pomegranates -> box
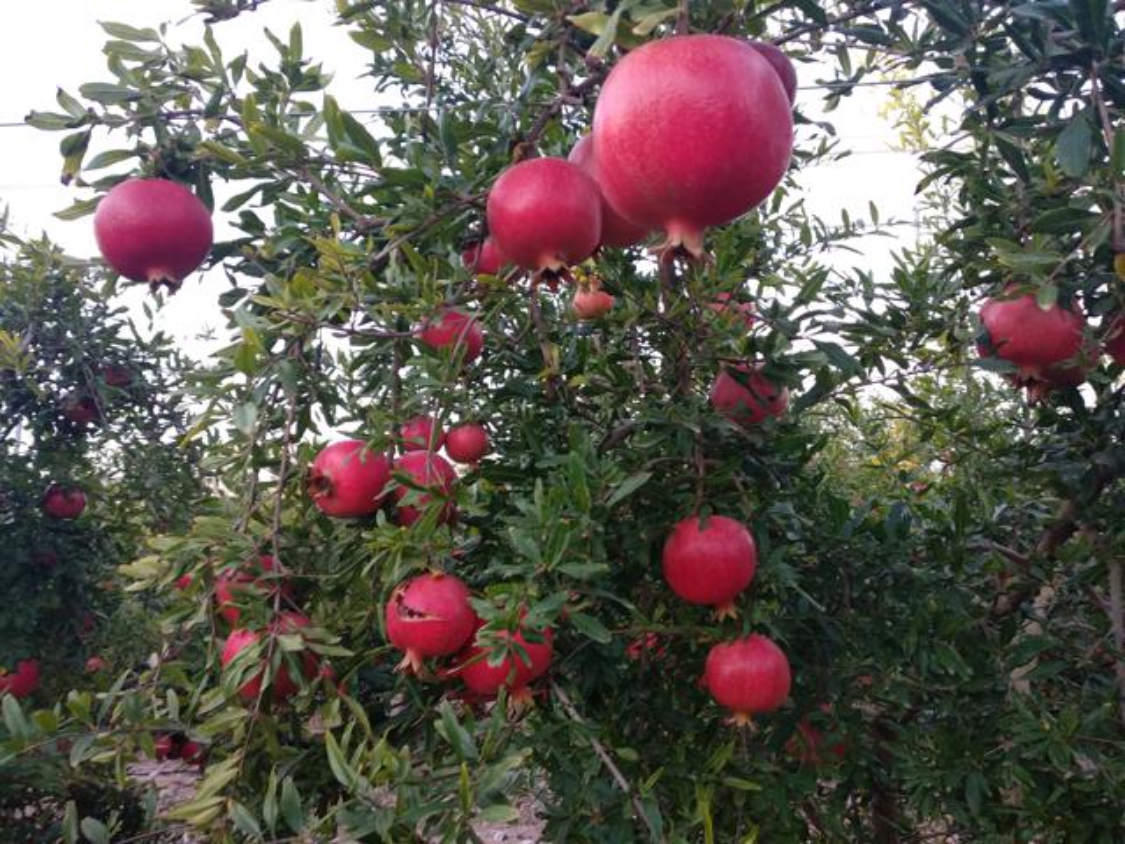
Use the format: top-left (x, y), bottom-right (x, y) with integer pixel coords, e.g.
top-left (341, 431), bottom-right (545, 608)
top-left (399, 415), bottom-right (446, 454)
top-left (44, 491), bottom-right (86, 520)
top-left (306, 438), bottom-right (387, 519)
top-left (977, 295), bottom-right (1086, 406)
top-left (452, 617), bottom-right (554, 707)
top-left (418, 311), bottom-right (483, 360)
top-left (464, 227), bottom-right (512, 271)
top-left (223, 612), bottom-right (325, 702)
top-left (710, 367), bottom-right (789, 422)
top-left (387, 447), bottom-right (457, 524)
top-left (213, 556), bottom-right (274, 626)
top-left (564, 127), bottom-right (649, 248)
top-left (0, 661), bottom-right (42, 696)
top-left (571, 288), bottom-right (612, 318)
top-left (385, 571), bottom-right (478, 680)
top-left (487, 155), bottom-right (605, 288)
top-left (97, 178), bottom-right (214, 297)
top-left (592, 28), bottom-right (793, 267)
top-left (445, 422), bottom-right (487, 469)
top-left (153, 735), bottom-right (174, 760)
top-left (663, 513), bottom-right (759, 622)
top-left (740, 39), bottom-right (795, 102)
top-left (698, 633), bottom-right (795, 728)
top-left (181, 740), bottom-right (199, 763)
